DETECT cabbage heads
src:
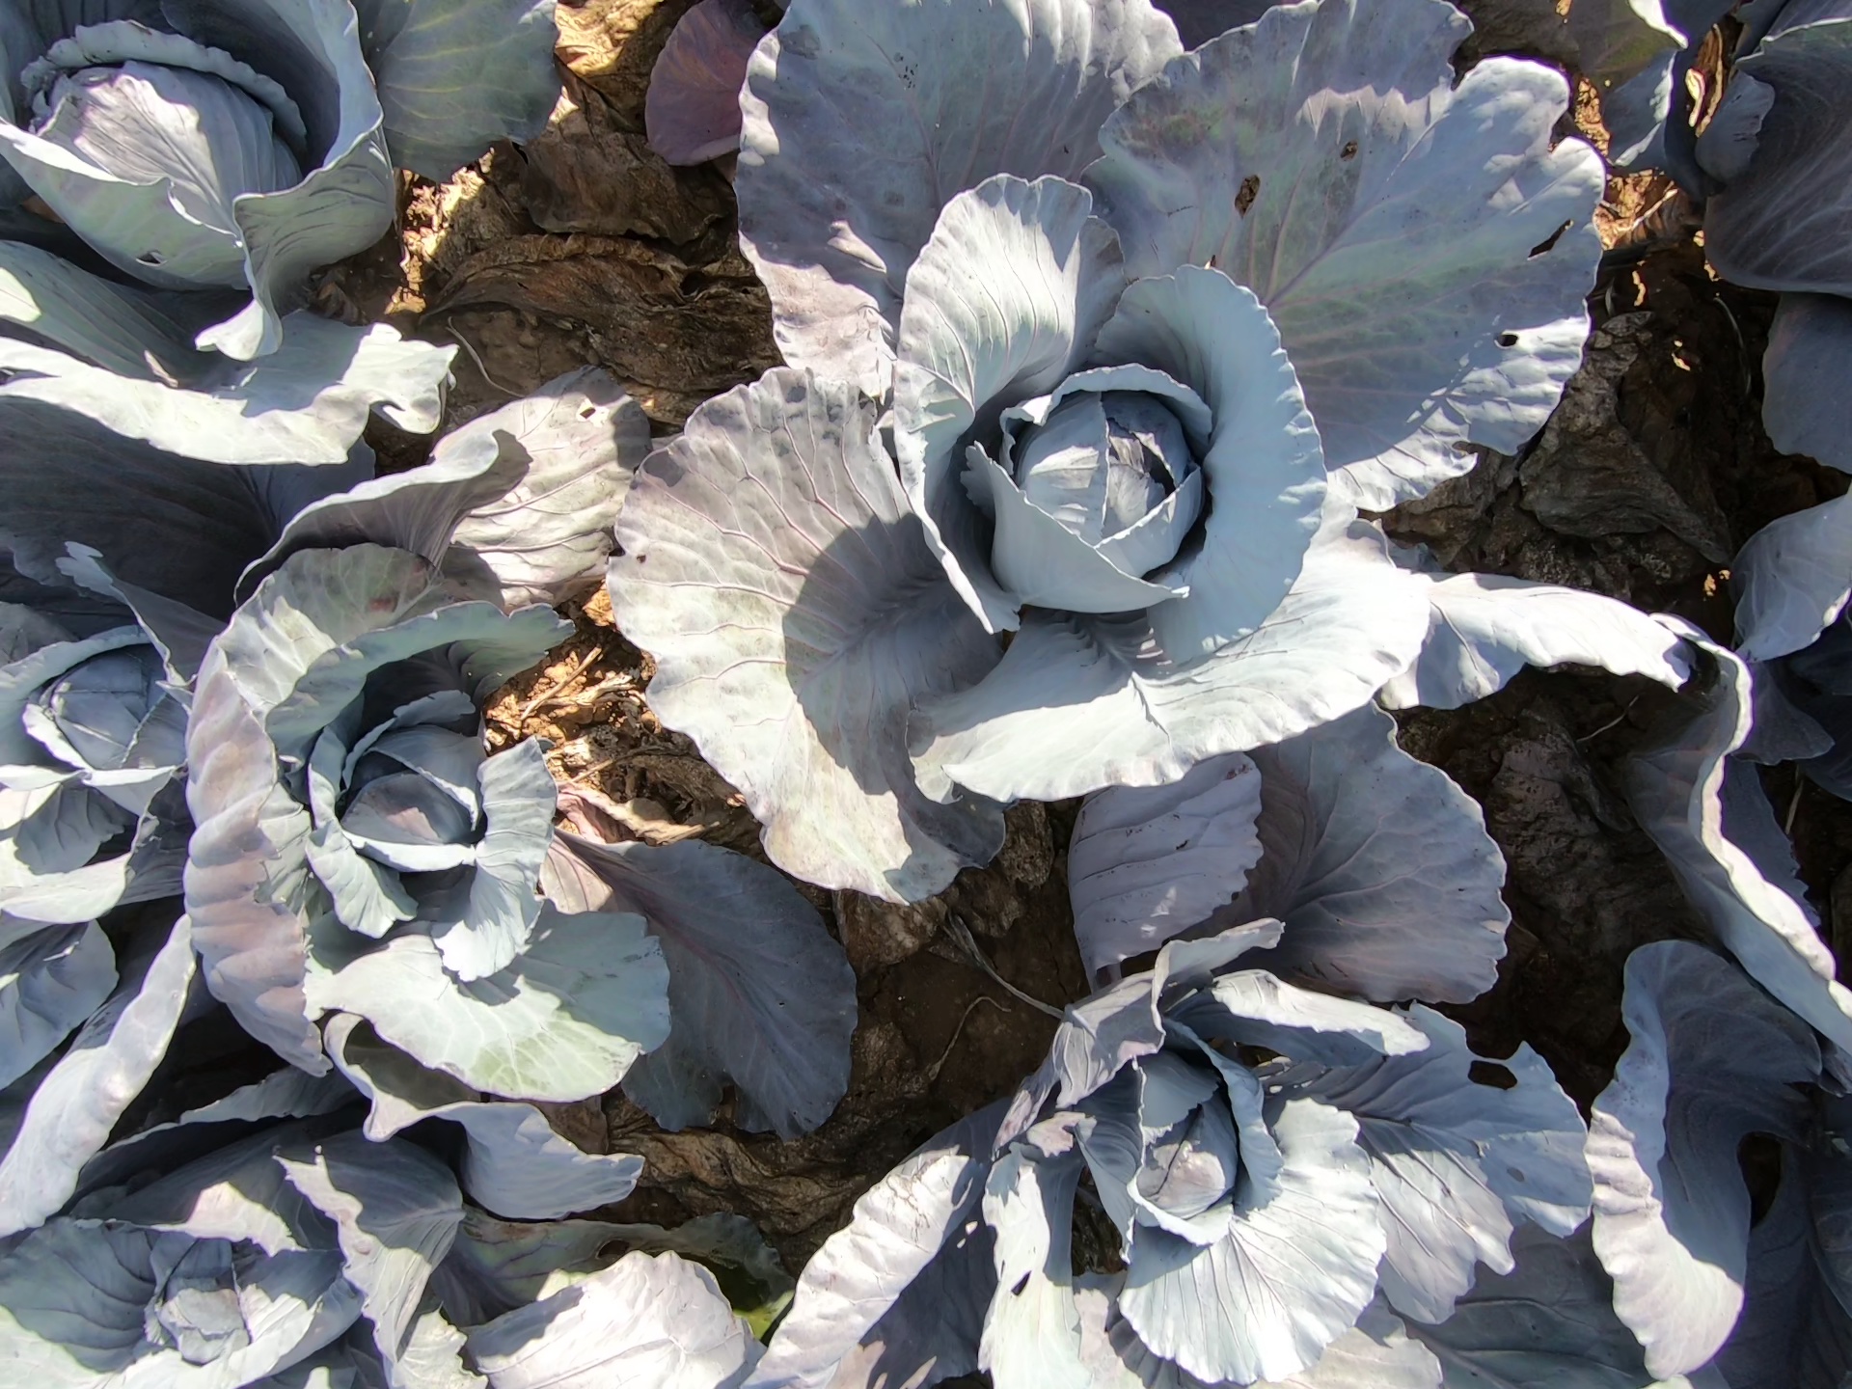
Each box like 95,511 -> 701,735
40,58 -> 296,257
1013,389 -> 1198,598
154,1153 -> 406,1367
333,731 -> 483,863
36,638 -> 236,784
1100,1062 -> 1242,1221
